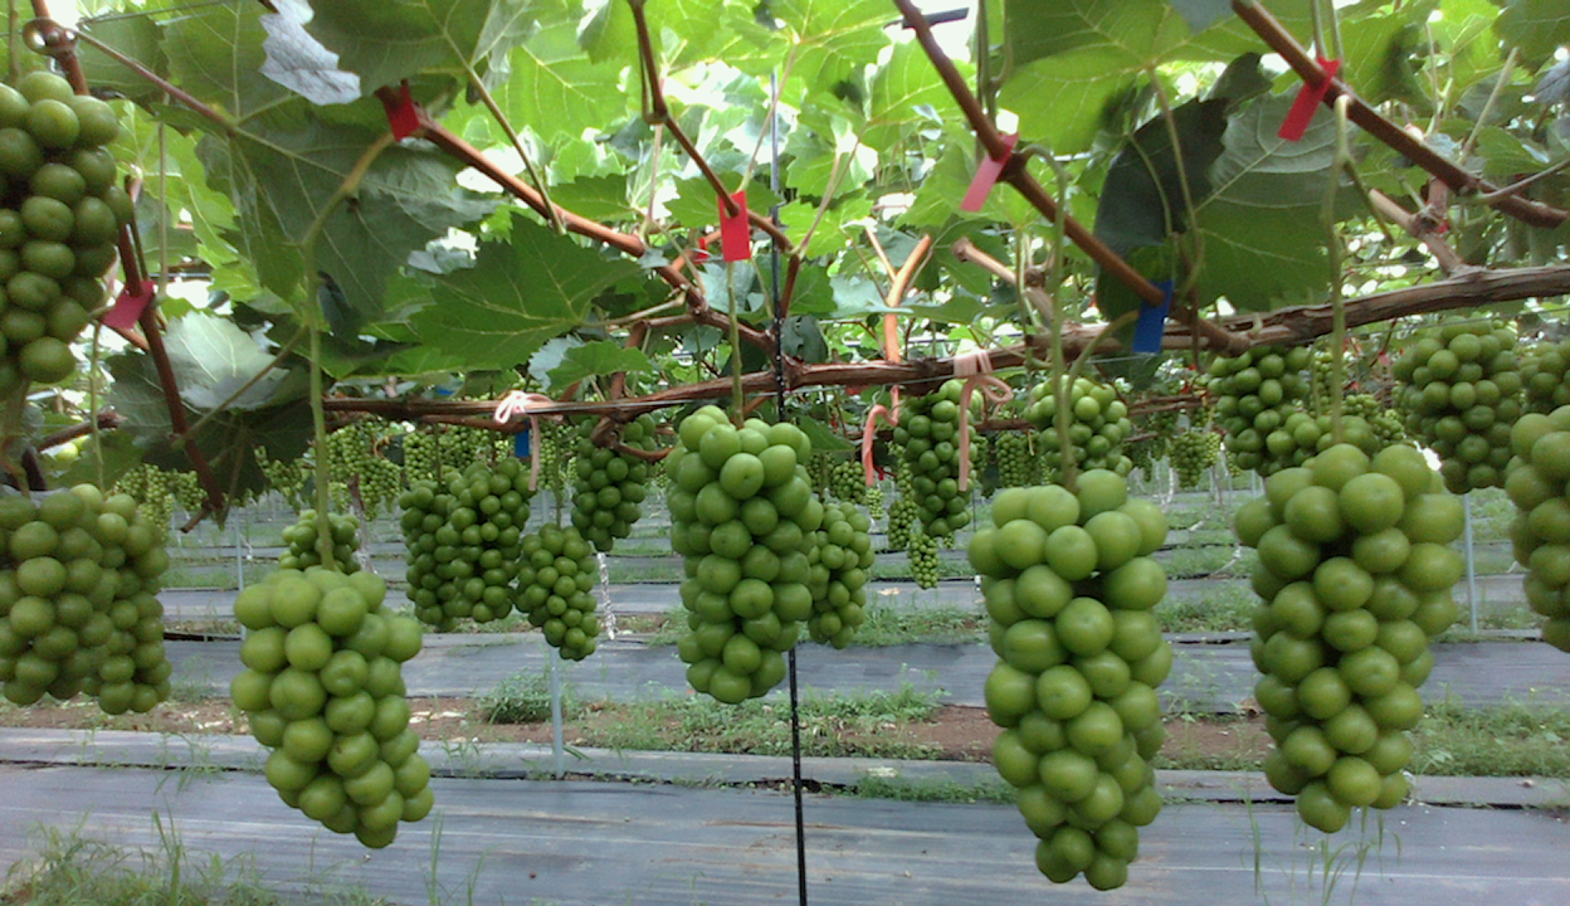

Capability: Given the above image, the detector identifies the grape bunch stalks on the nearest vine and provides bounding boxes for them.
[1010,145,1077,493]
[88,320,104,495]
[728,260,743,429]
[303,126,395,573]
[1318,94,1356,445]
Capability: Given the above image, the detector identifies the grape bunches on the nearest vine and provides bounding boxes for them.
[230,564,434,851]
[1505,404,1569,652]
[0,489,114,706]
[1233,443,1464,833]
[70,483,175,713]
[967,469,1174,893]
[665,405,823,705]
[0,72,132,389]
